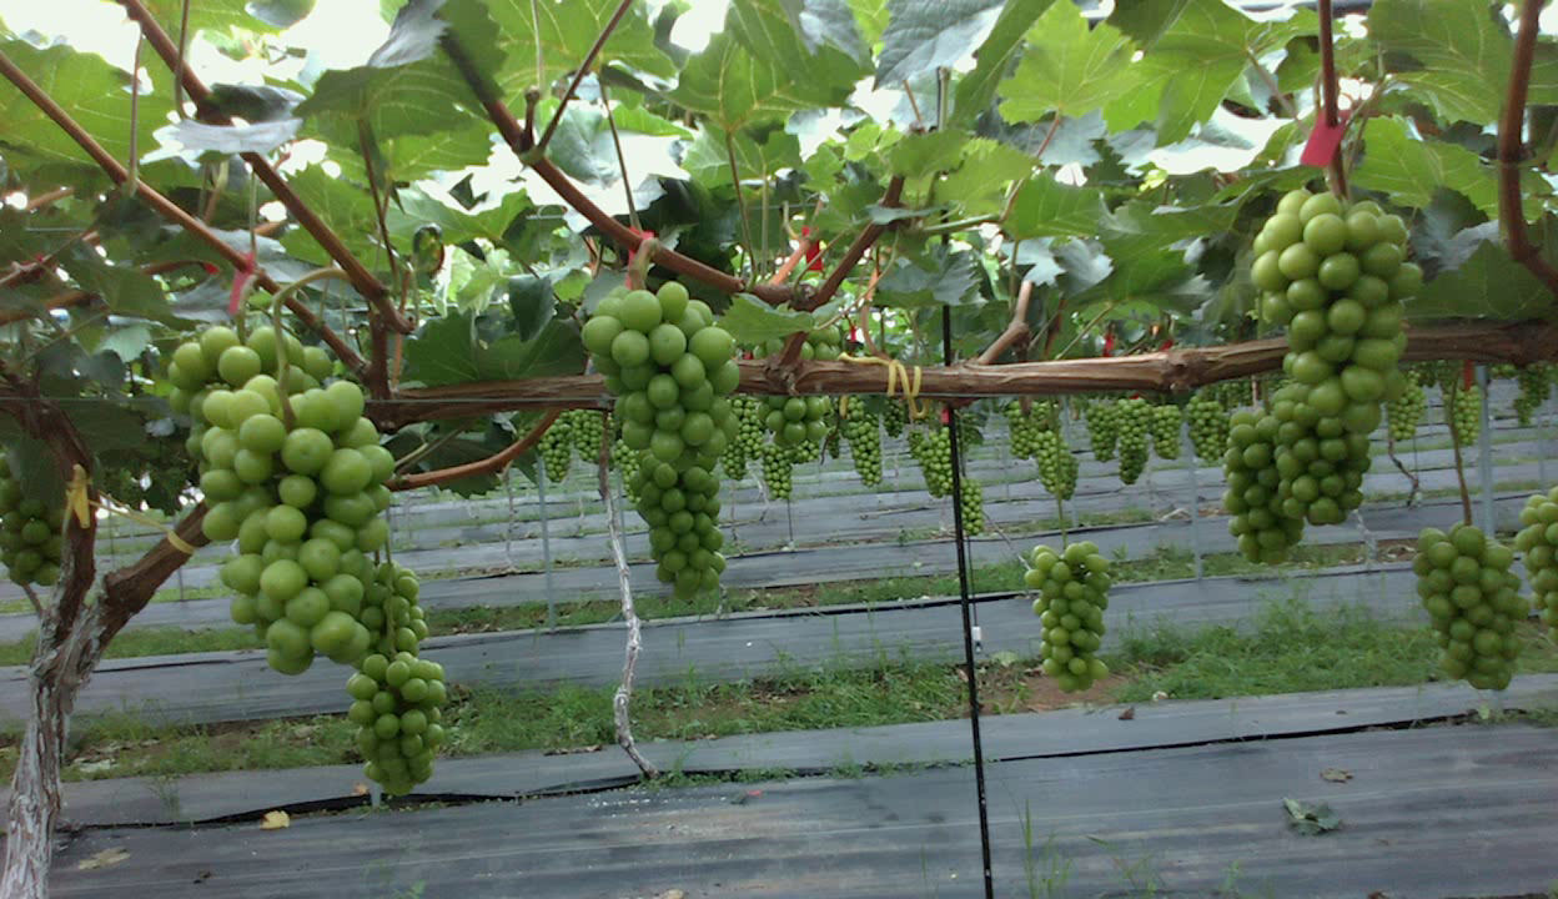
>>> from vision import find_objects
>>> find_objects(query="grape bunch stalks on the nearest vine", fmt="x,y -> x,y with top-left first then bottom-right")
271,267 -> 348,430
237,276 -> 257,342
1327,165 -> 1343,195
630,240 -> 652,287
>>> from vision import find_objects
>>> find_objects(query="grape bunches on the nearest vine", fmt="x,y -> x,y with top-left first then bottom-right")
581,283 -> 739,473
1251,190 -> 1422,431
197,375 -> 394,677
167,326 -> 333,466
